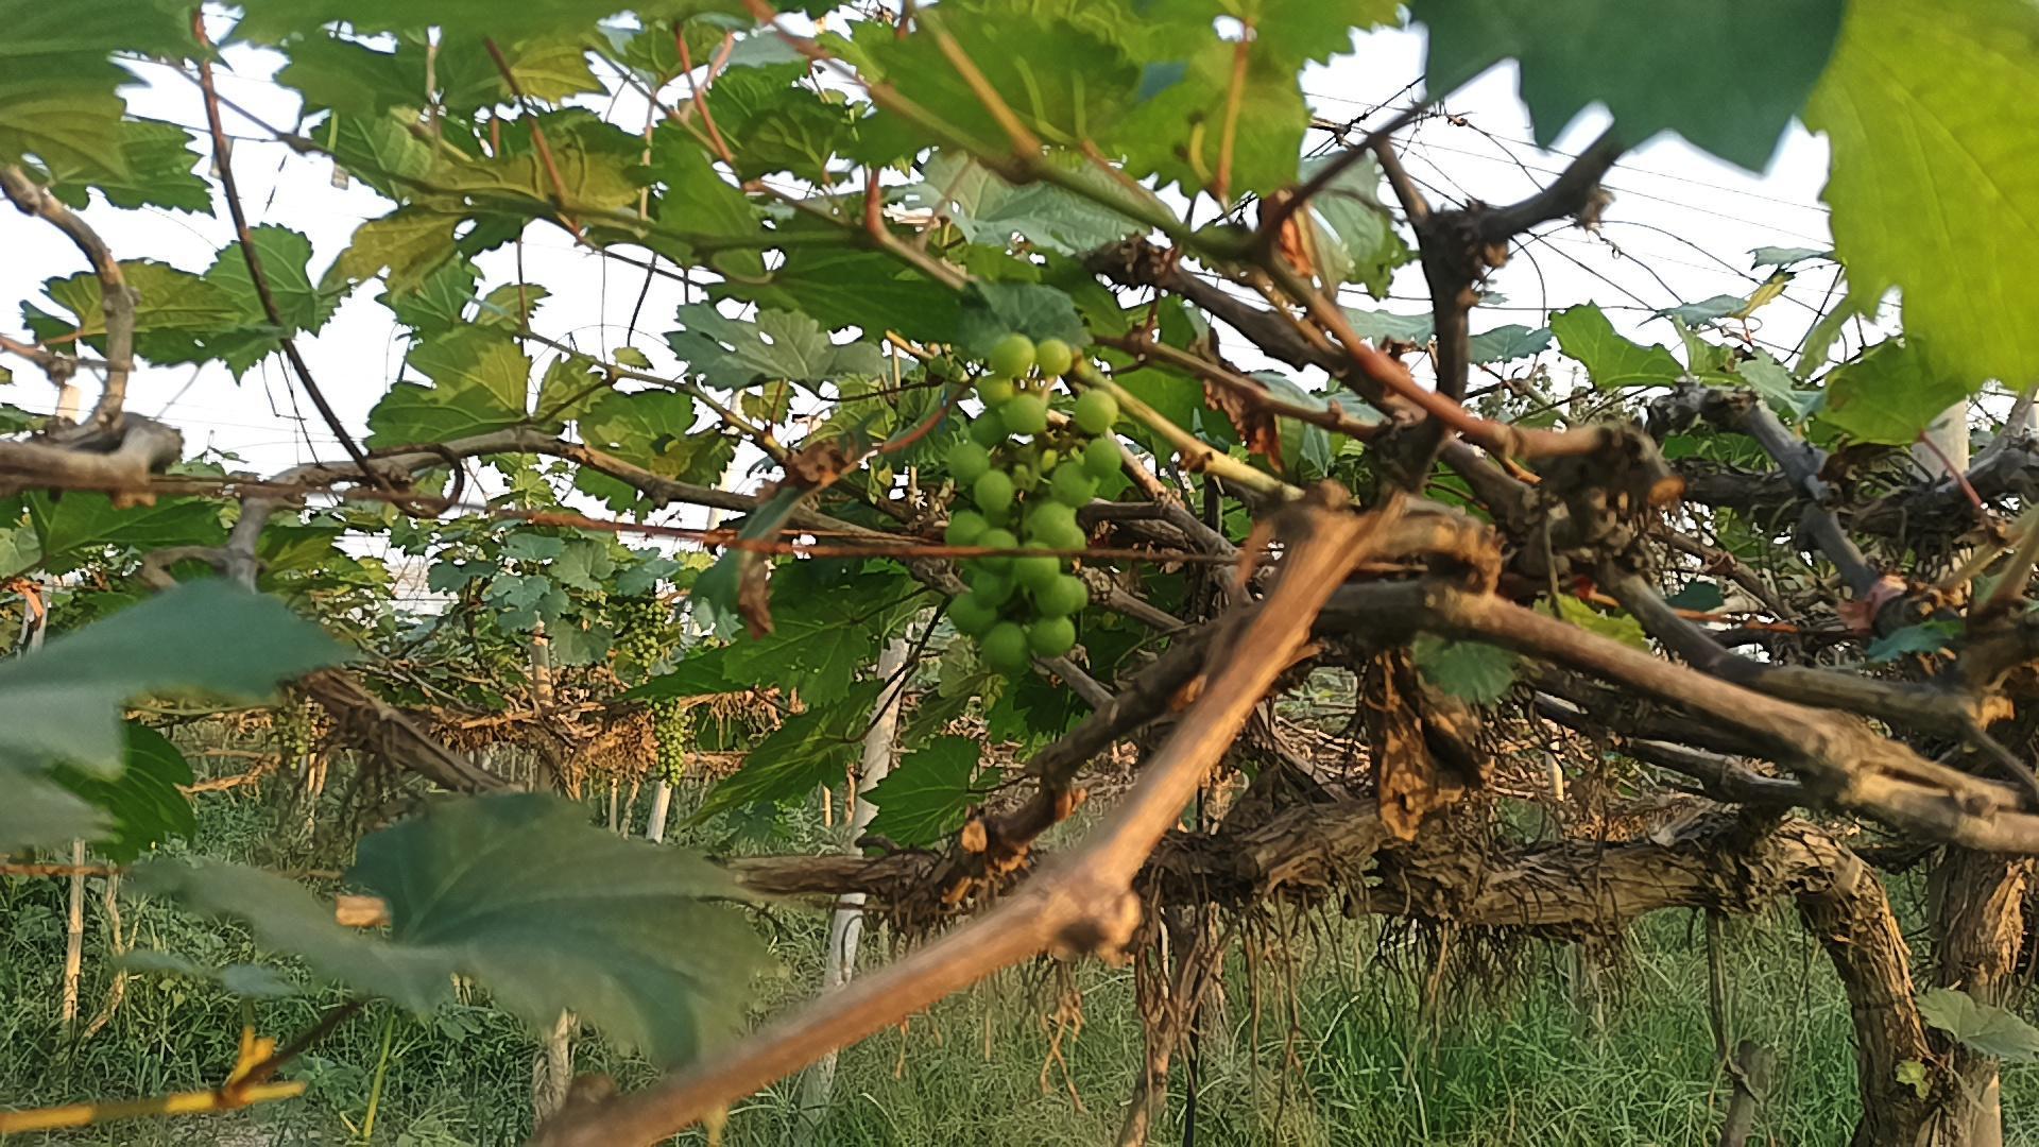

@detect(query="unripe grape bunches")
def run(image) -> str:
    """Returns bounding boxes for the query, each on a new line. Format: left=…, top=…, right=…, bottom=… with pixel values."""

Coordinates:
left=616, top=595, right=673, bottom=673
left=945, top=337, right=1119, bottom=672
left=649, top=698, right=693, bottom=788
